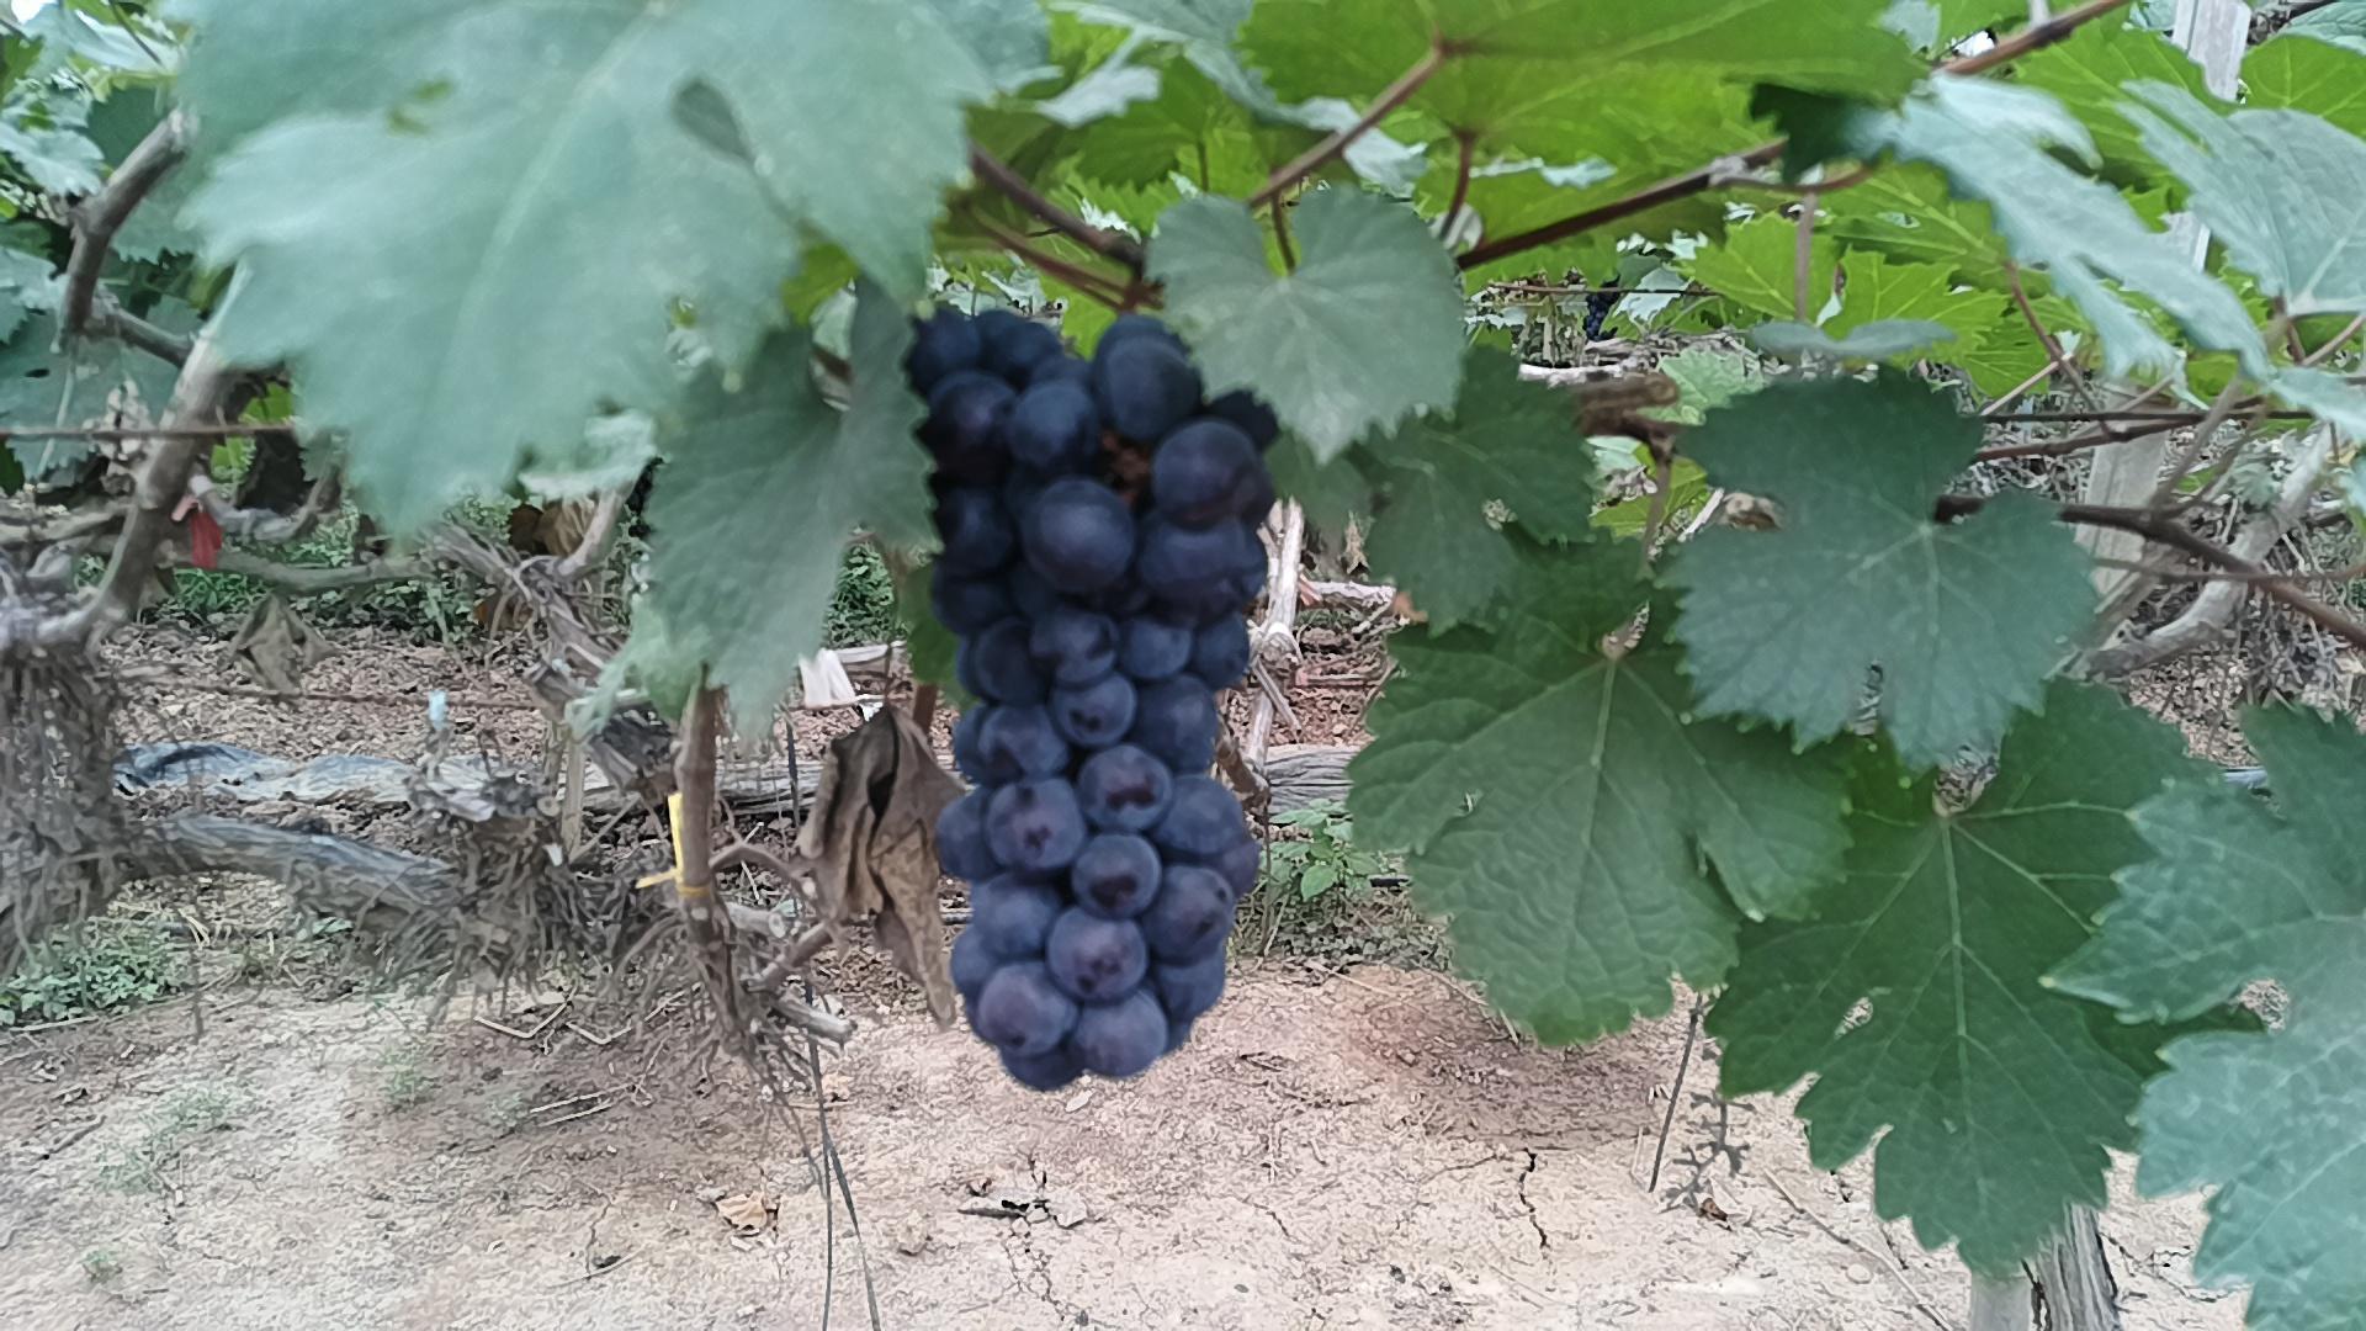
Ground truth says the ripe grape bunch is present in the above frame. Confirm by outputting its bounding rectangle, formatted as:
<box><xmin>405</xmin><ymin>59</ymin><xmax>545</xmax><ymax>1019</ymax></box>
<box><xmin>906</xmin><ymin>308</ymin><xmax>1275</xmax><ymax>1088</ymax></box>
